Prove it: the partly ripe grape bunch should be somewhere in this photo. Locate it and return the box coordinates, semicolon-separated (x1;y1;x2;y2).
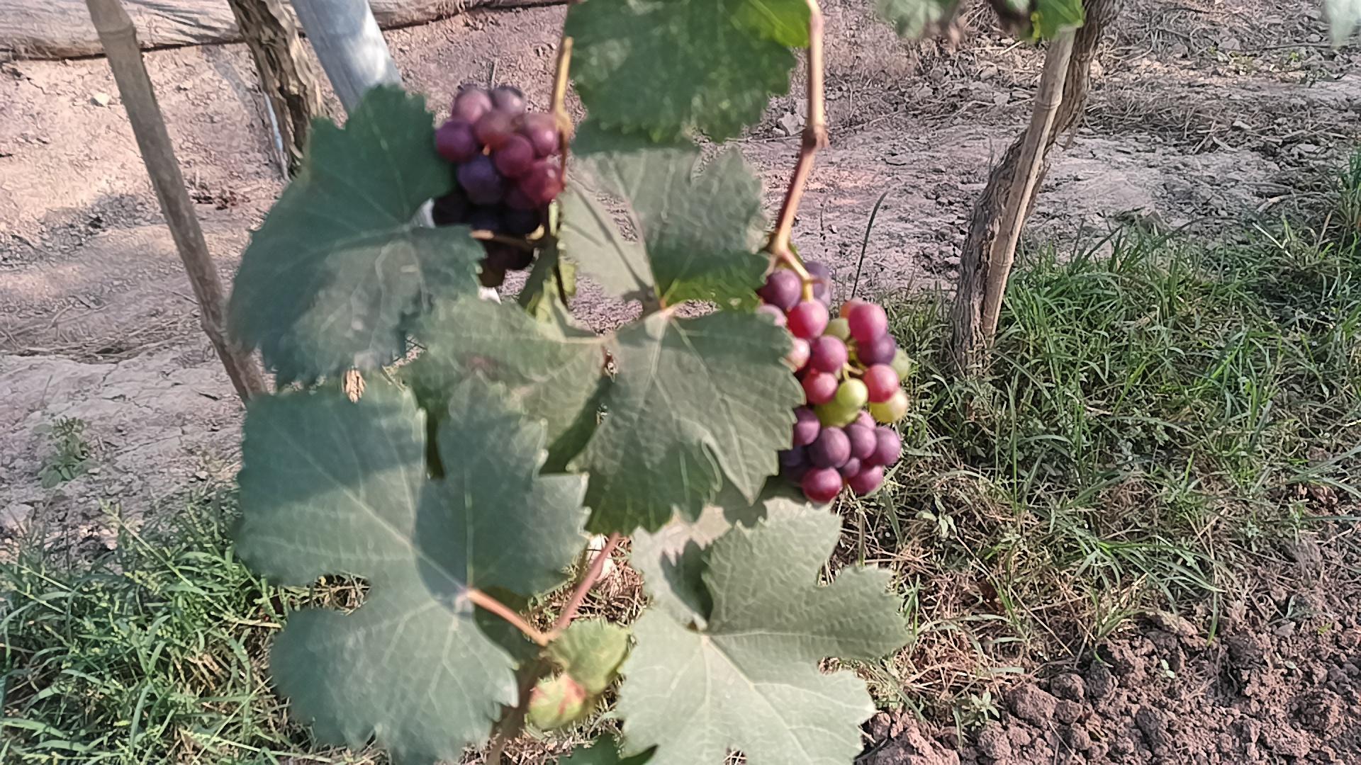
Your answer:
757;263;909;501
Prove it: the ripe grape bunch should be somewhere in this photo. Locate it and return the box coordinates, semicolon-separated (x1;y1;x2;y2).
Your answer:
432;84;567;298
